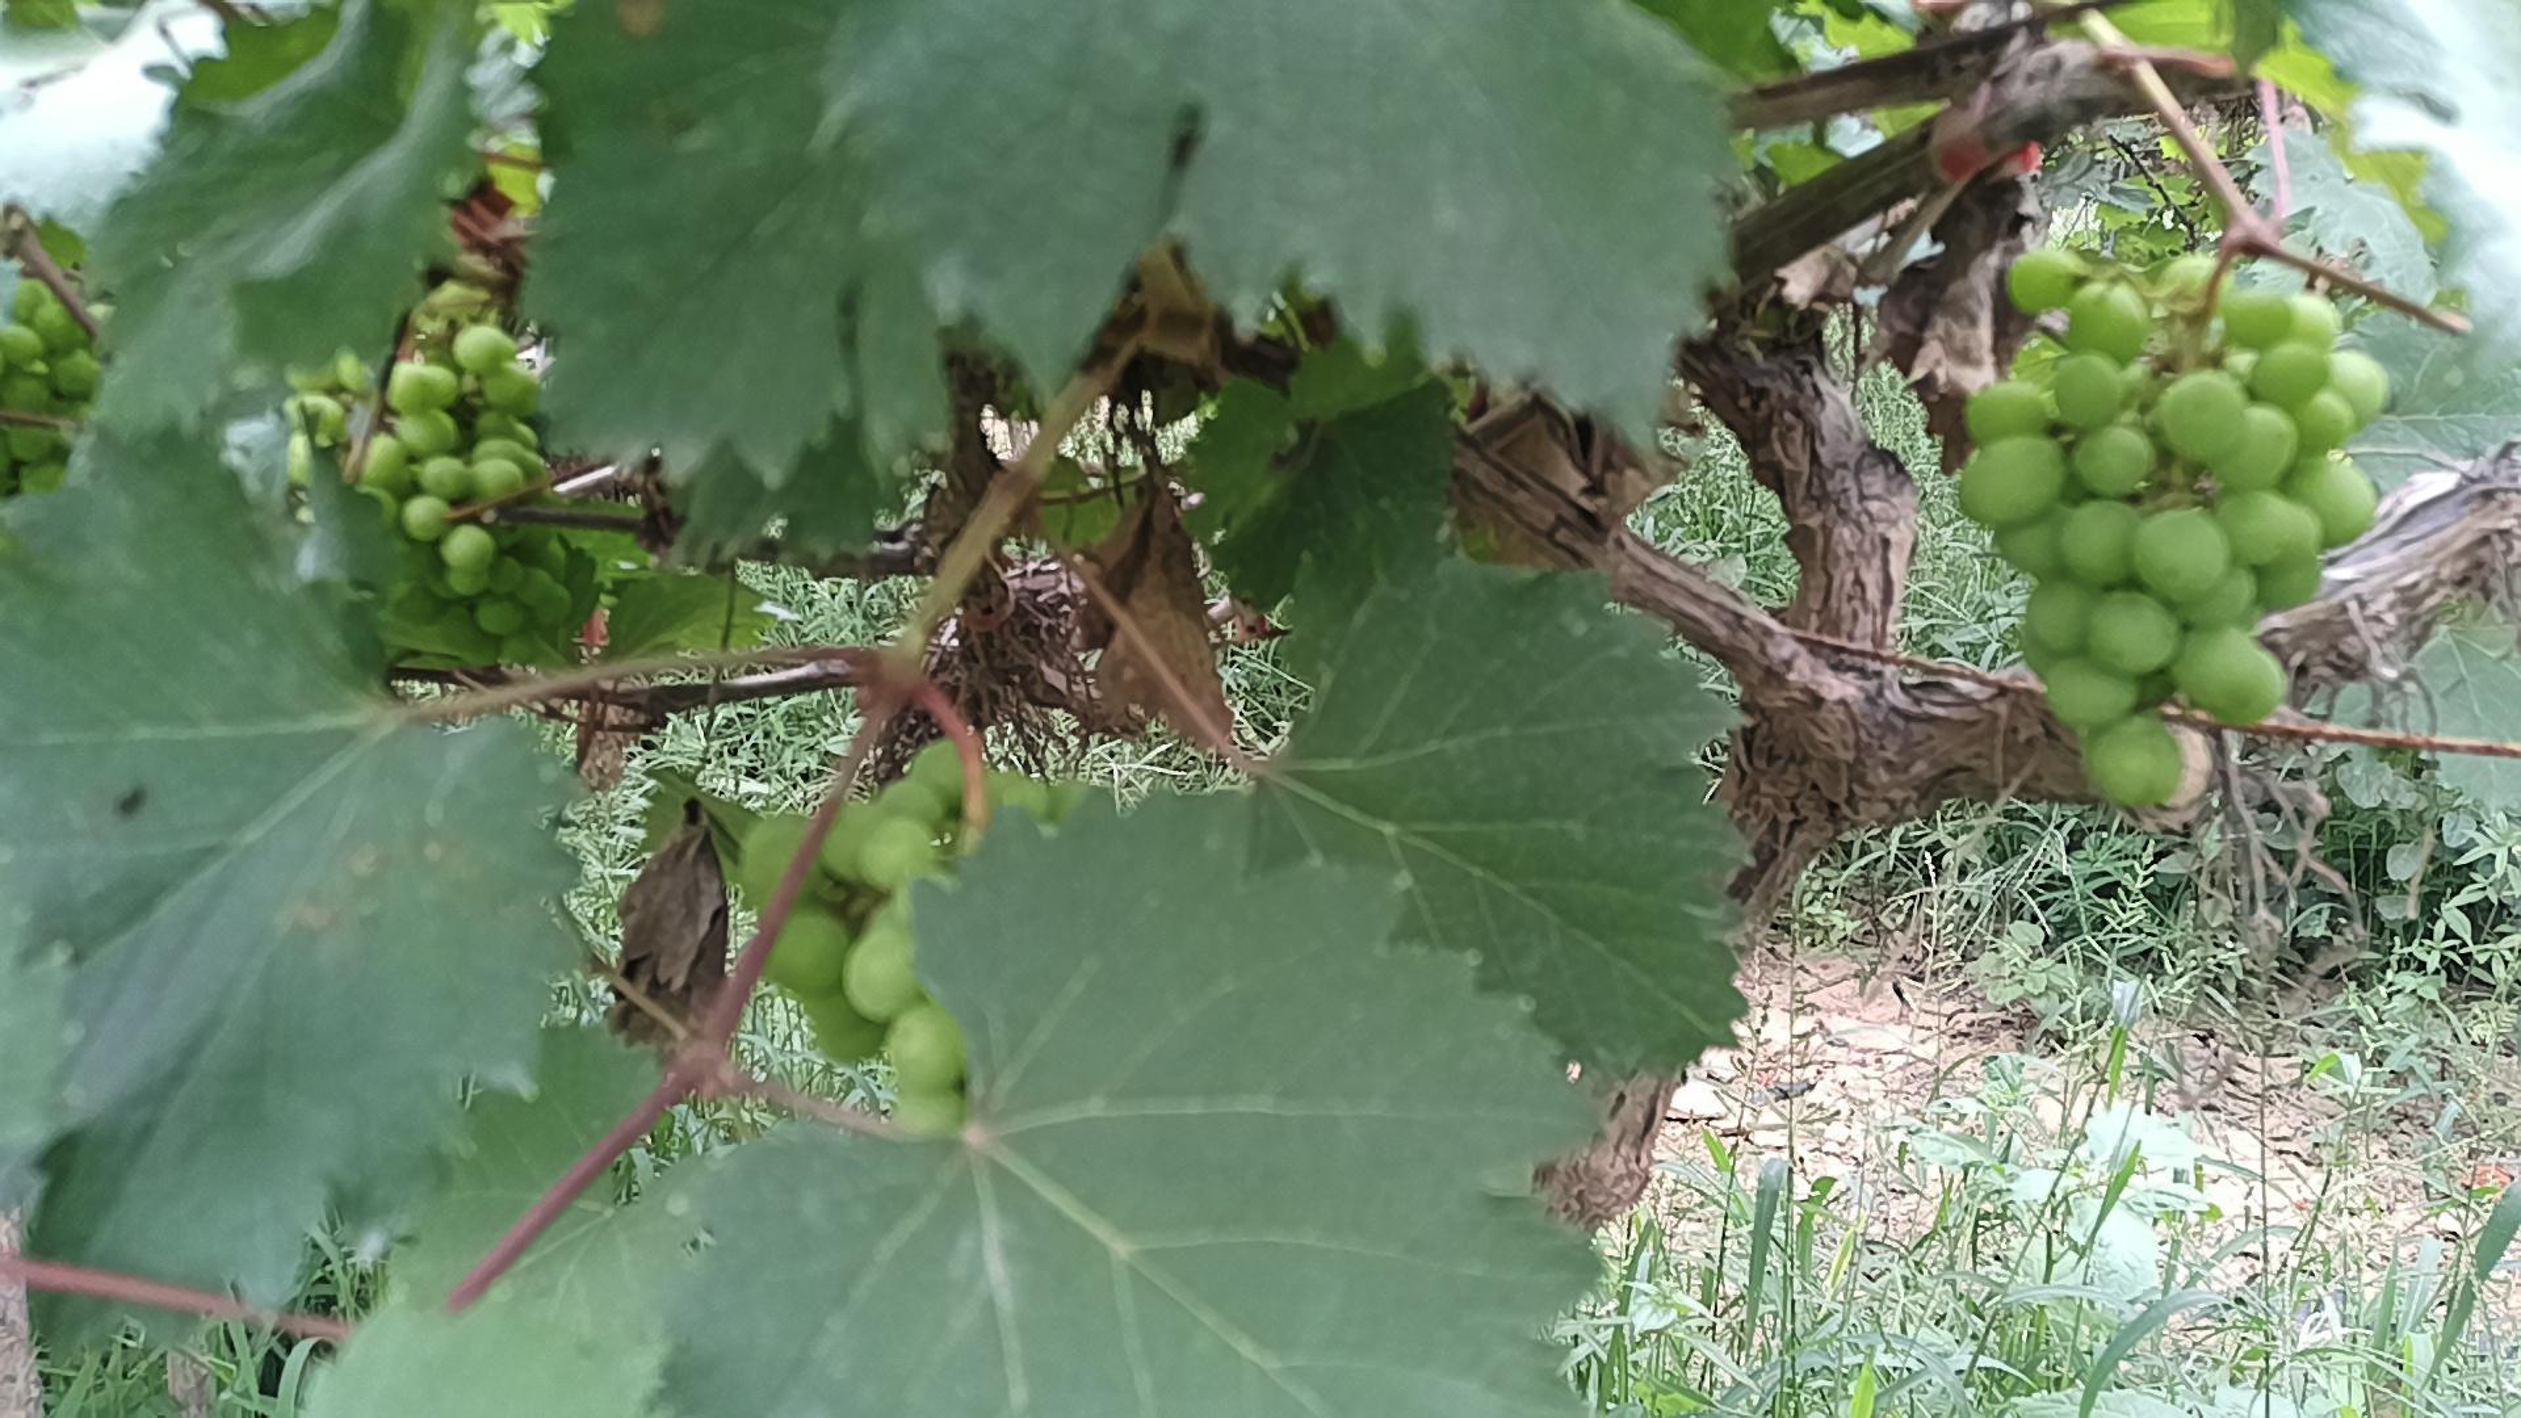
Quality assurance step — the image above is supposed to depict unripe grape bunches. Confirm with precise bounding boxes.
[741,751,1099,1137]
[1960,248,2388,807]
[0,218,102,499]
[285,256,579,666]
